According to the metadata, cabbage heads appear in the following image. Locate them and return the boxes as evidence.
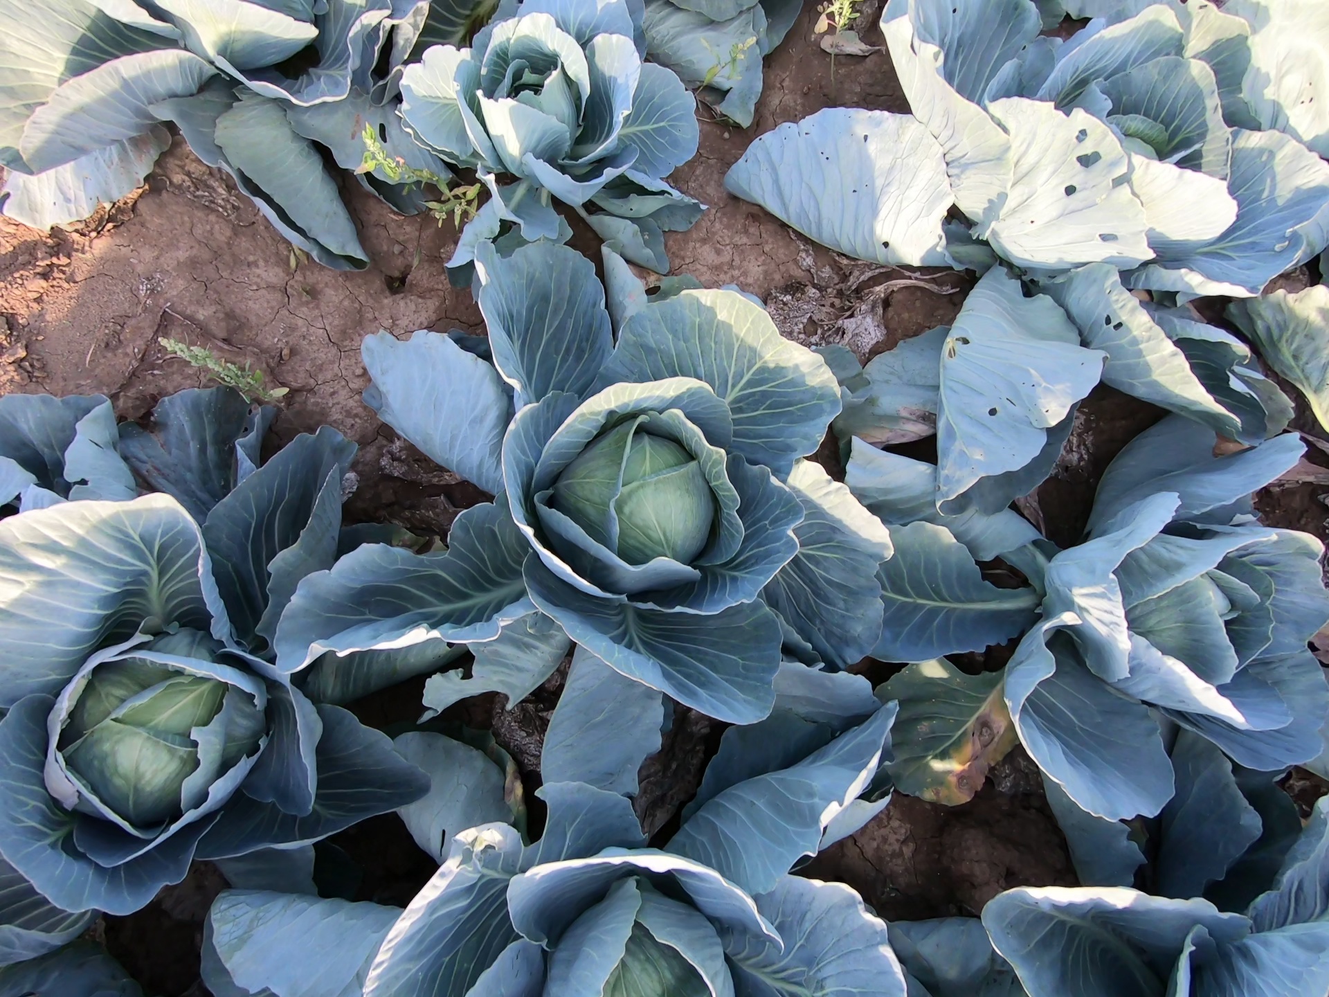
[587,432,719,574]
[555,906,712,994]
[1123,570,1236,663]
[60,652,248,823]
[1057,122,1162,228]
[496,78,572,159]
